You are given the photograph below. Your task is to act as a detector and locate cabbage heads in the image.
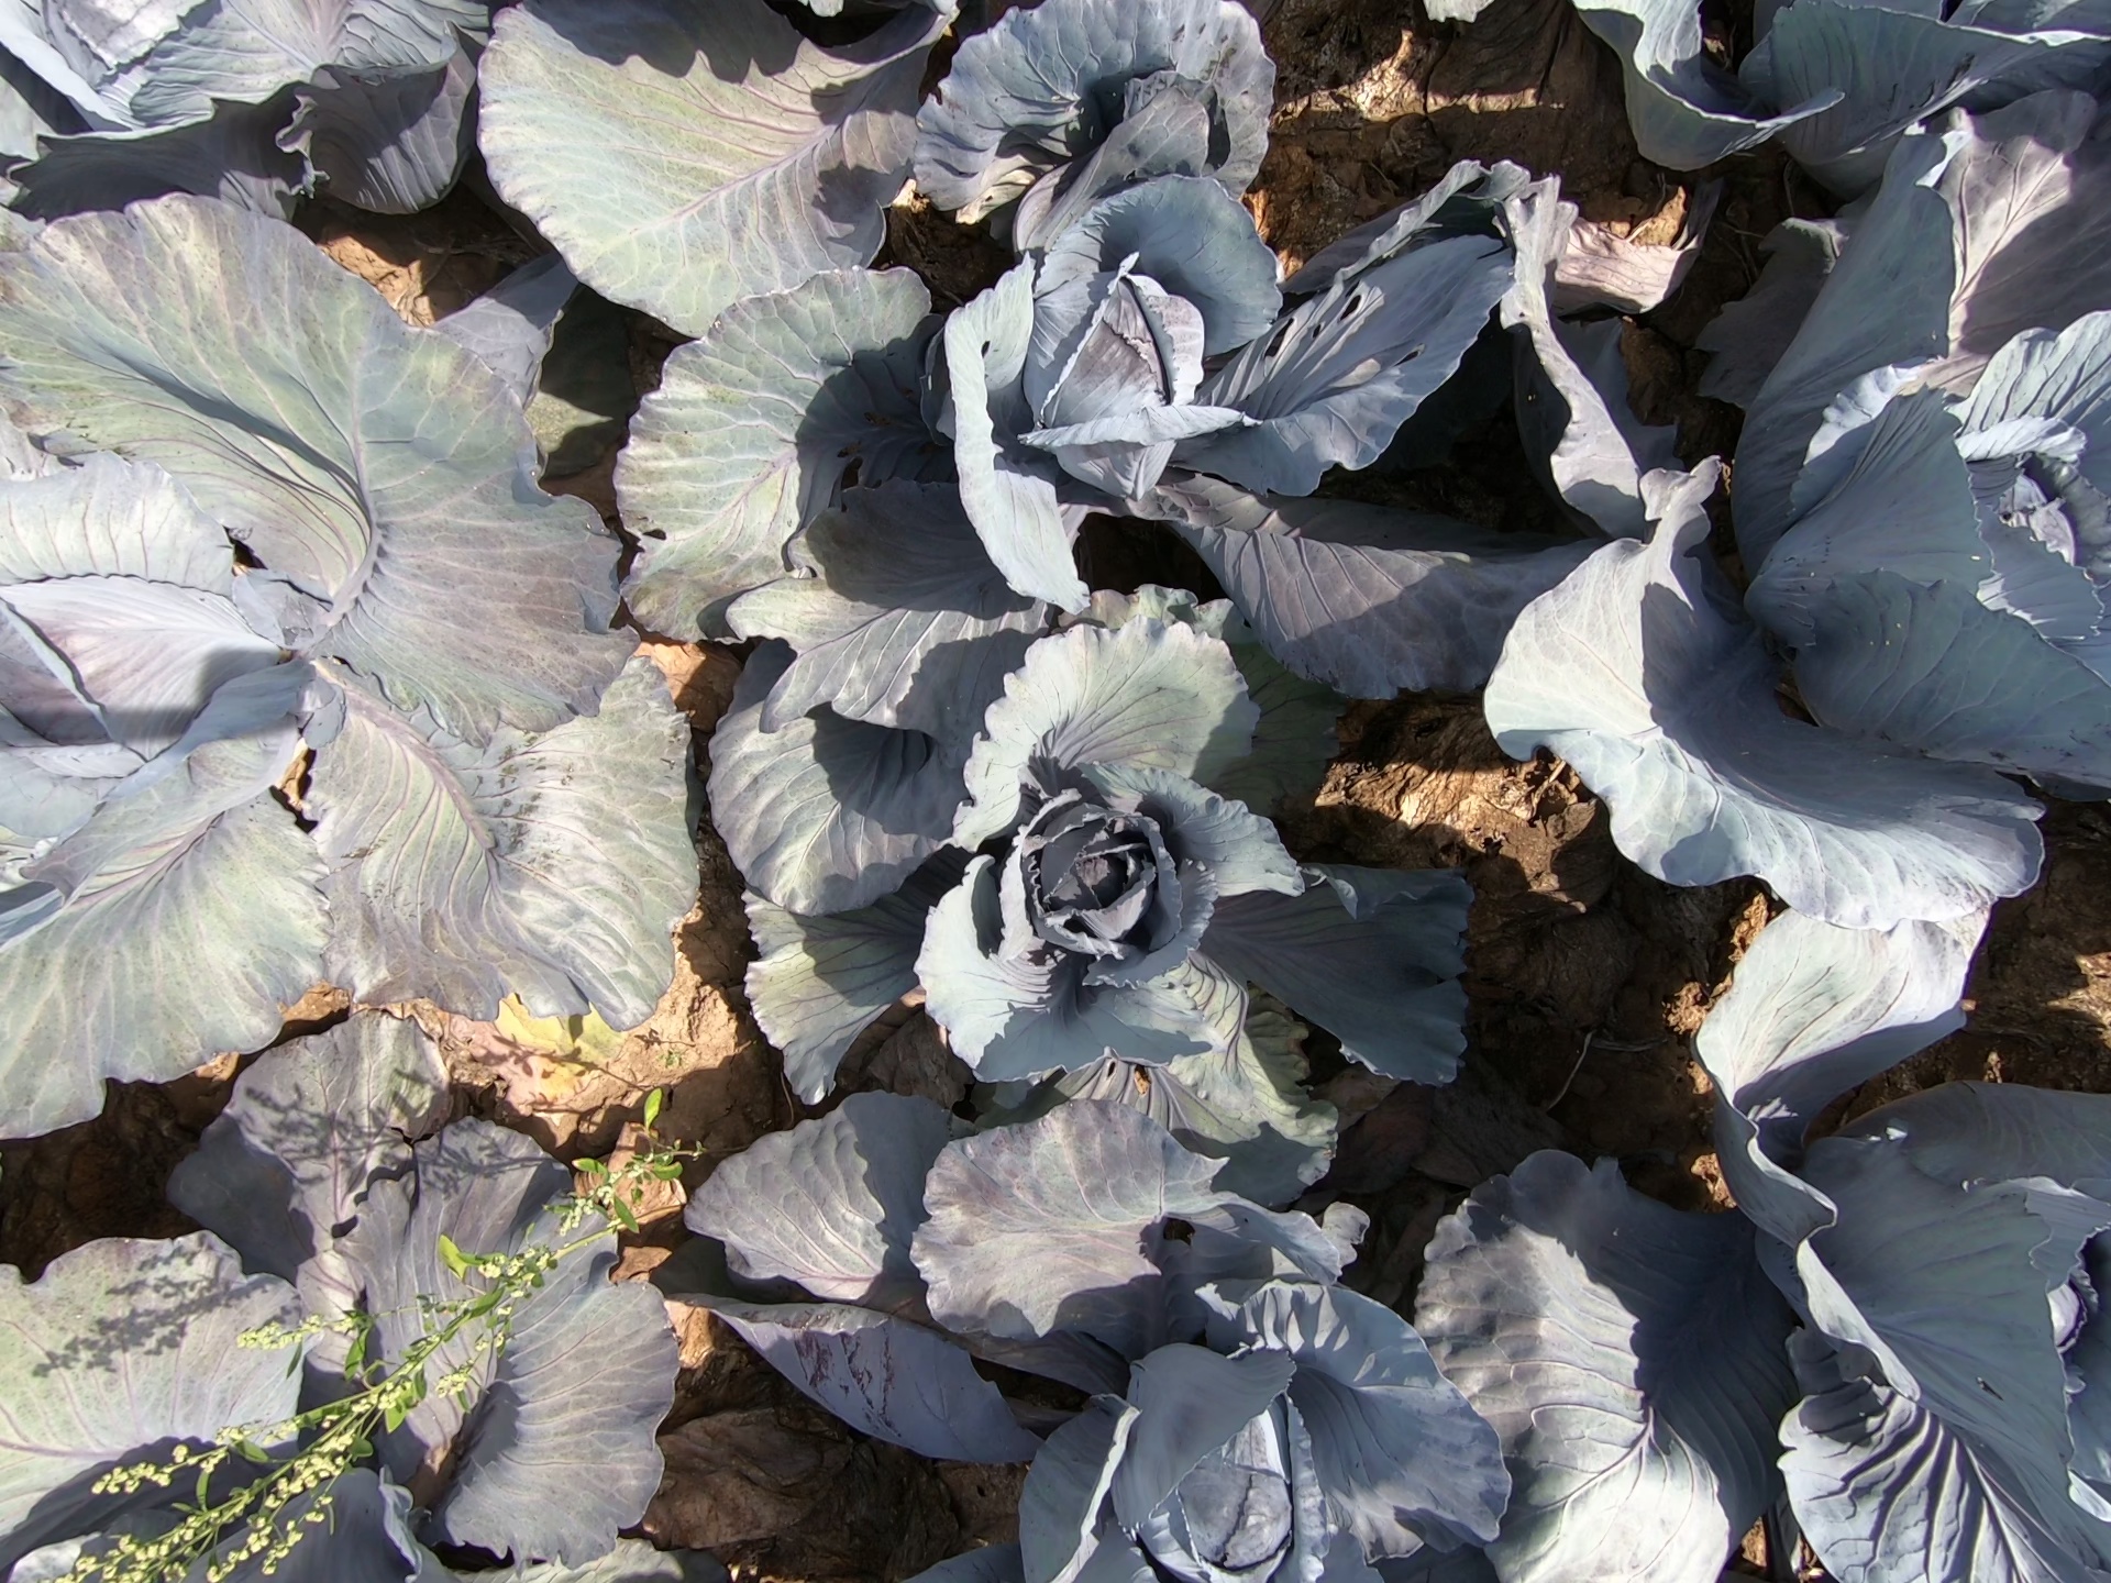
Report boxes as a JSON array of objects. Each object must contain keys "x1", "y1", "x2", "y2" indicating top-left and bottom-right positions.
[
  {"x1": 1028, "y1": 268, "x2": 1207, "y2": 467},
  {"x1": 3, "y1": 573, "x2": 274, "y2": 782},
  {"x1": 1043, "y1": 827, "x2": 1150, "y2": 940},
  {"x1": 1889, "y1": 1197, "x2": 2096, "y2": 1363},
  {"x1": 32, "y1": 0, "x2": 325, "y2": 168},
  {"x1": 1137, "y1": 1372, "x2": 1305, "y2": 1582},
  {"x1": 1882, "y1": 456, "x2": 2078, "y2": 647}
]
